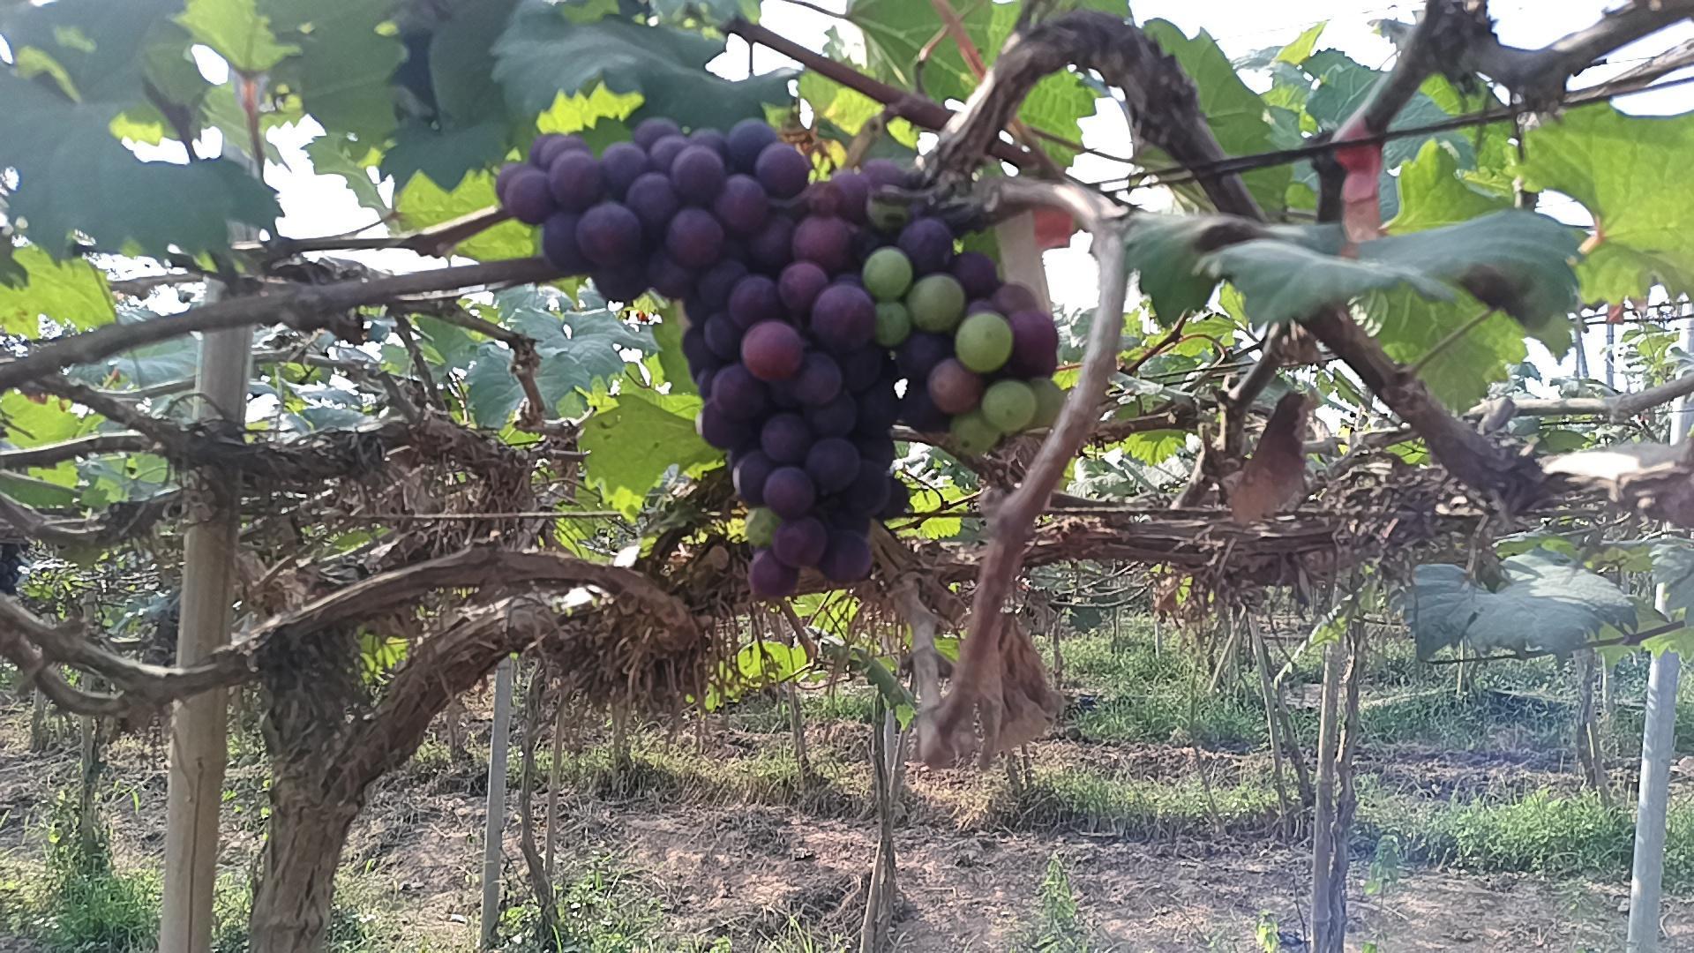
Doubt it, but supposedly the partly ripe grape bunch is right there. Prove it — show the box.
[496,117,1067,599]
